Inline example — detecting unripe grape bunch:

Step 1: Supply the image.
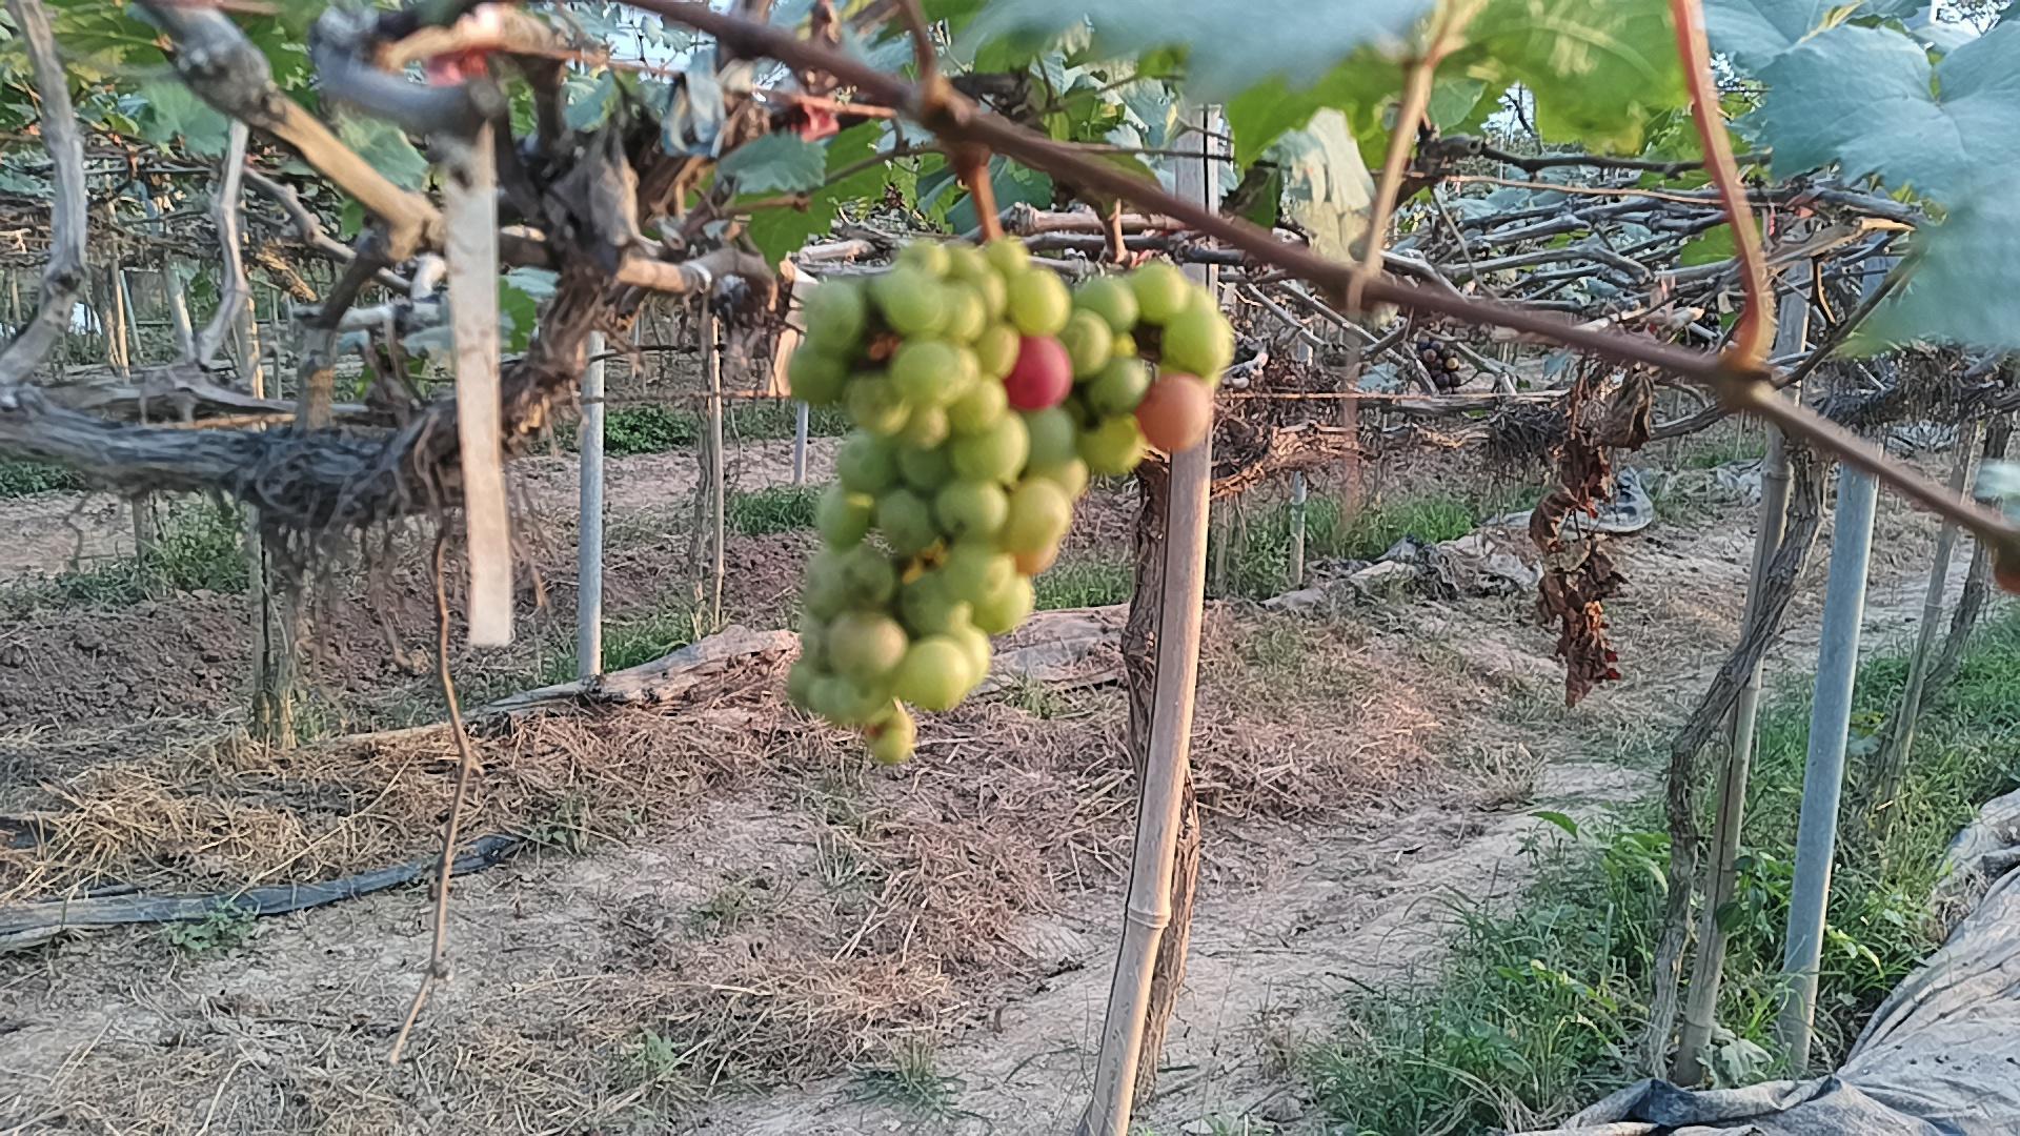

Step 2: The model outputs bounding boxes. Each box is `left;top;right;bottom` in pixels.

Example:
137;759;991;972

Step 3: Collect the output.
788;238;1232;763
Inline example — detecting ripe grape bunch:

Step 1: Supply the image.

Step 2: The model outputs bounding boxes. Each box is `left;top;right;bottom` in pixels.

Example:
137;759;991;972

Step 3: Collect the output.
1414;336;1461;392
